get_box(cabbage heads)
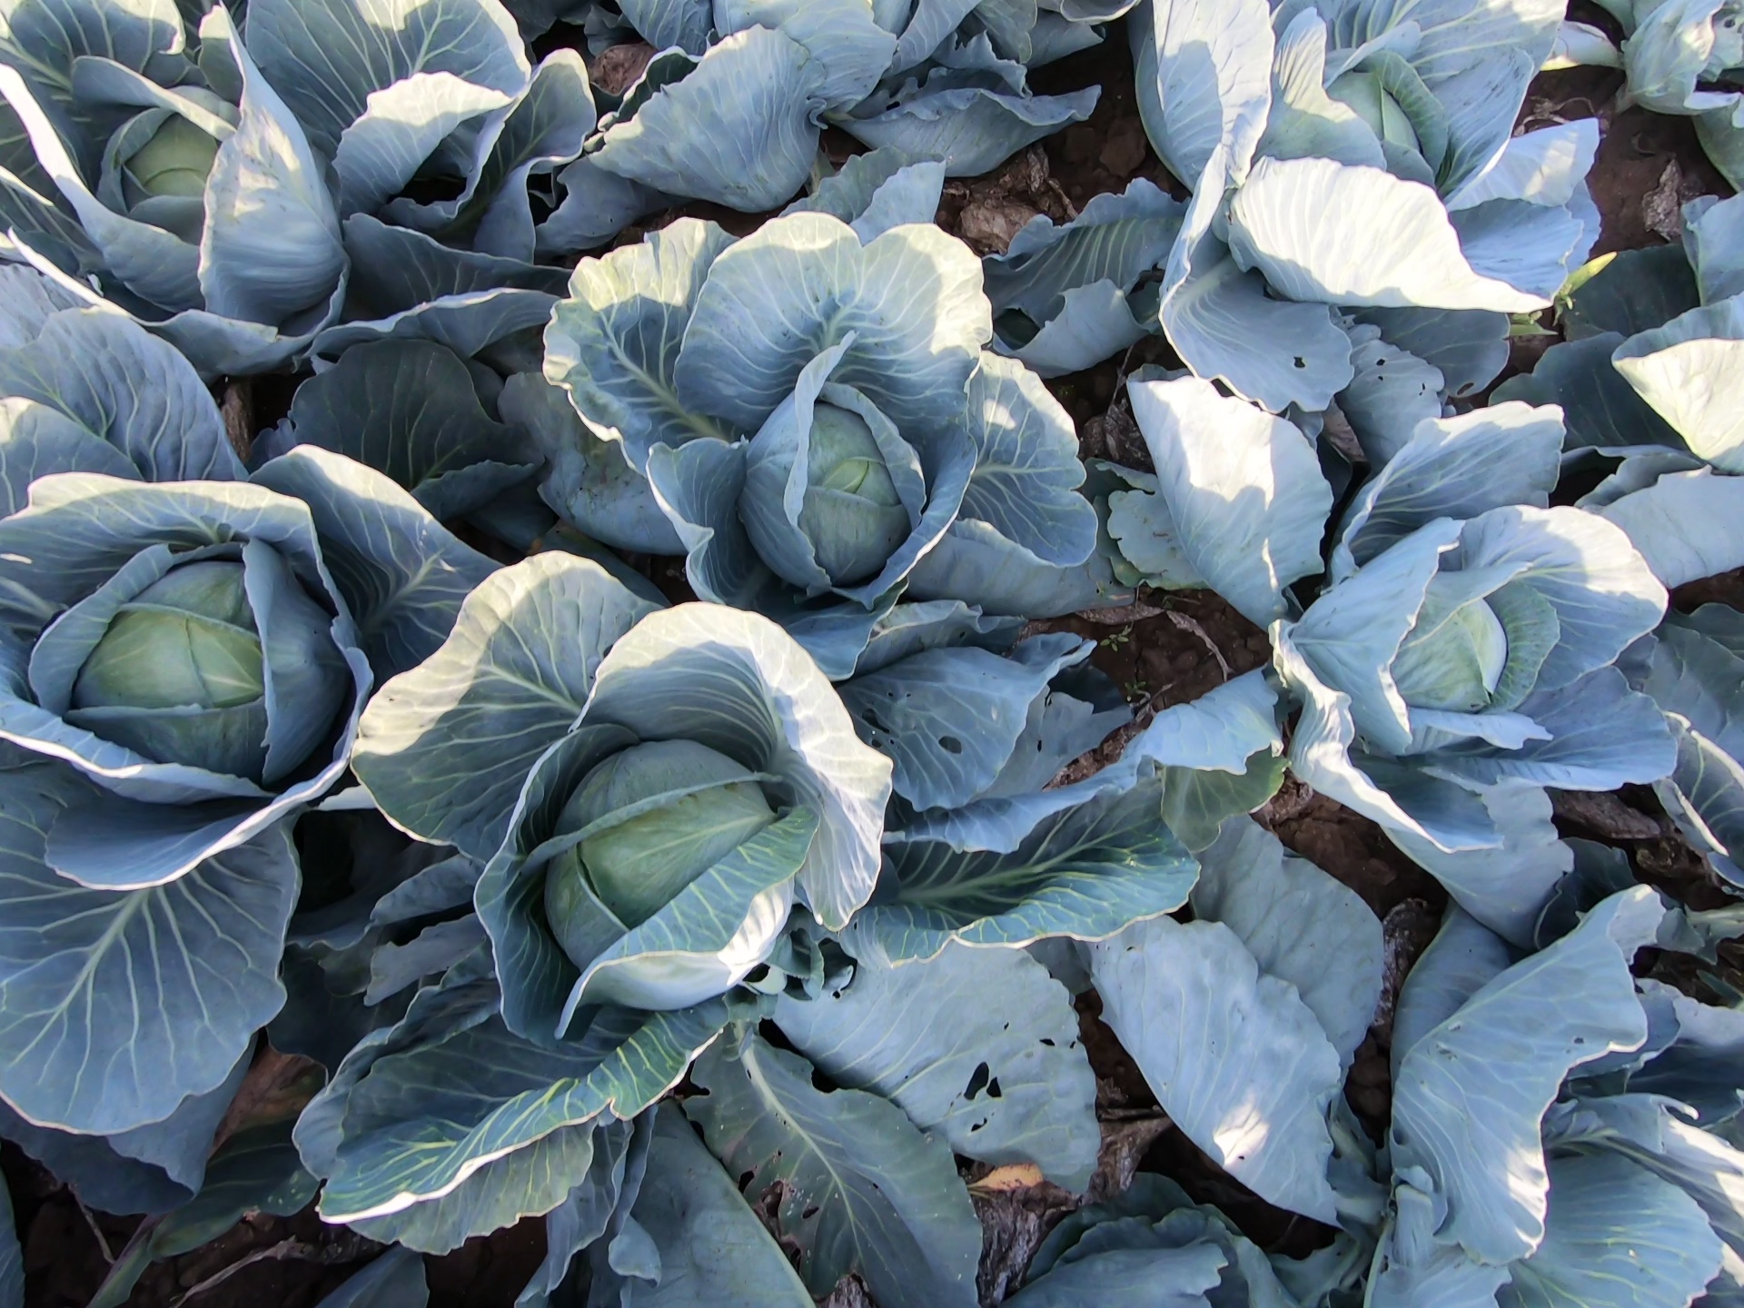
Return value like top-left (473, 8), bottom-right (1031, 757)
top-left (1303, 67), bottom-right (1424, 205)
top-left (740, 398), bottom-right (919, 583)
top-left (48, 558), bottom-right (333, 789)
top-left (743, 0), bottom-right (913, 93)
top-left (1361, 574), bottom-right (1511, 725)
top-left (1511, 1174), bottom-right (1741, 1305)
top-left (541, 748), bottom-right (788, 1000)
top-left (102, 102), bottom-right (301, 304)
